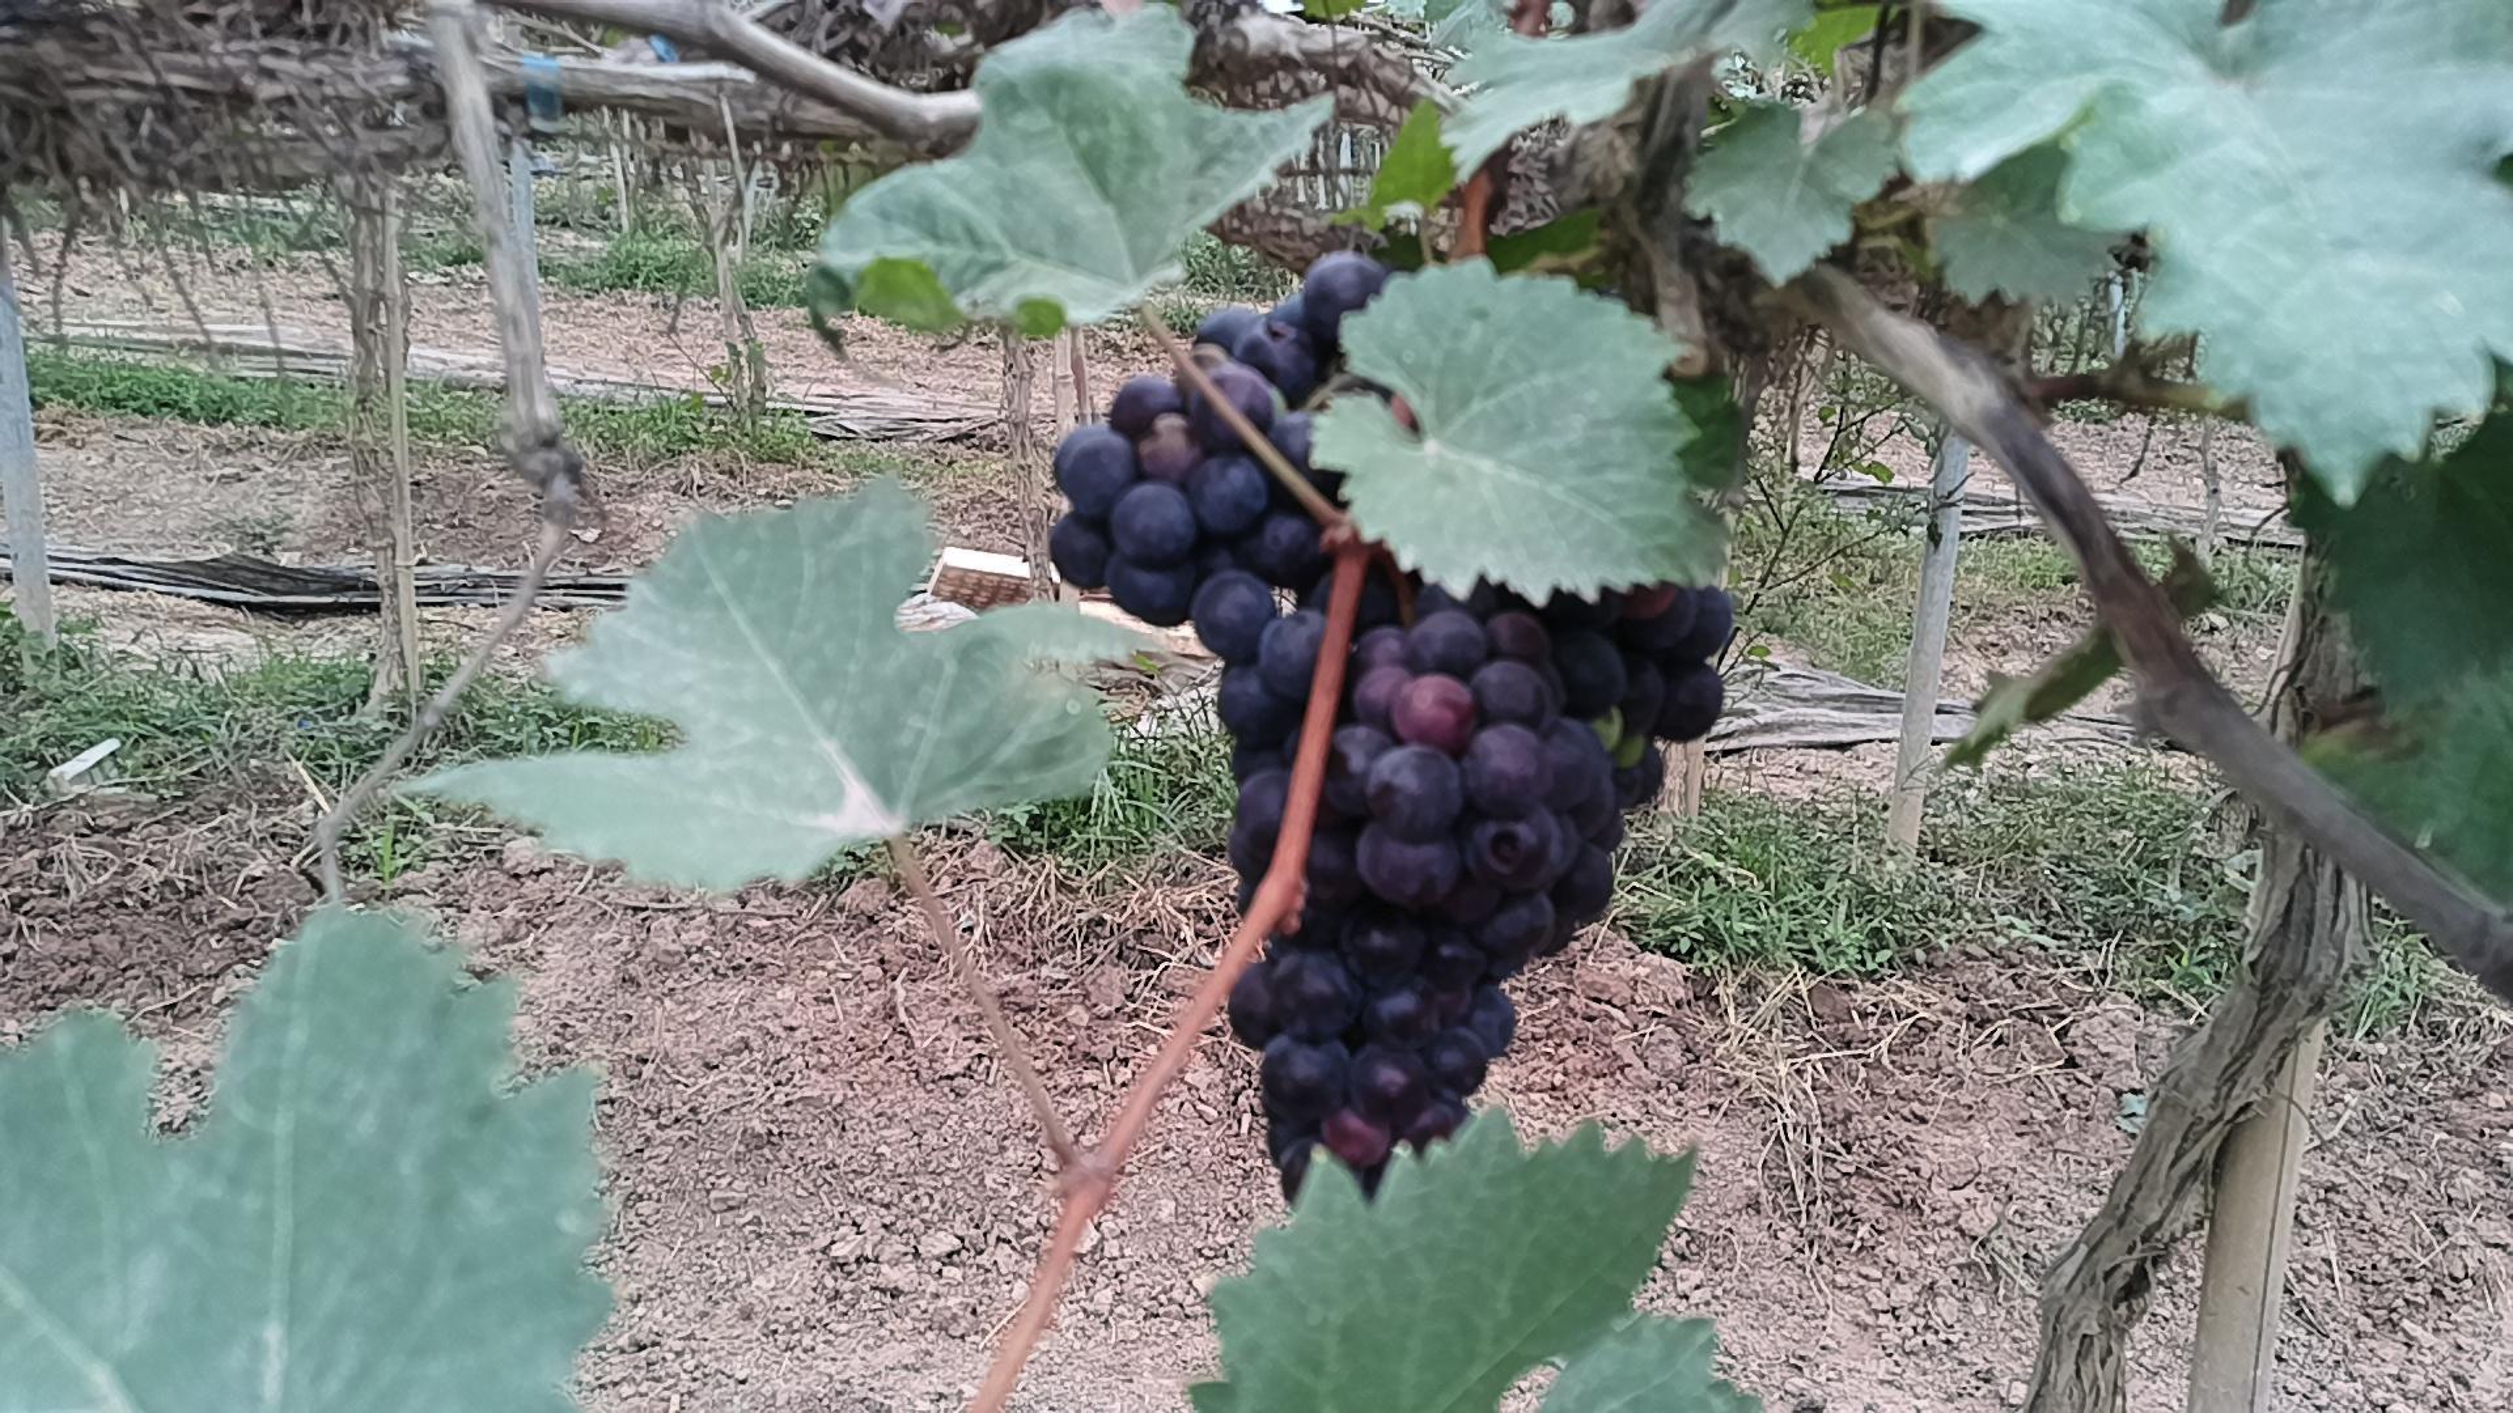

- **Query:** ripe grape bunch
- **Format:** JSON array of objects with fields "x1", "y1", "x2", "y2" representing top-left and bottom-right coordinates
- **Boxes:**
[{"x1": 1047, "y1": 259, "x2": 1728, "y2": 1201}]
